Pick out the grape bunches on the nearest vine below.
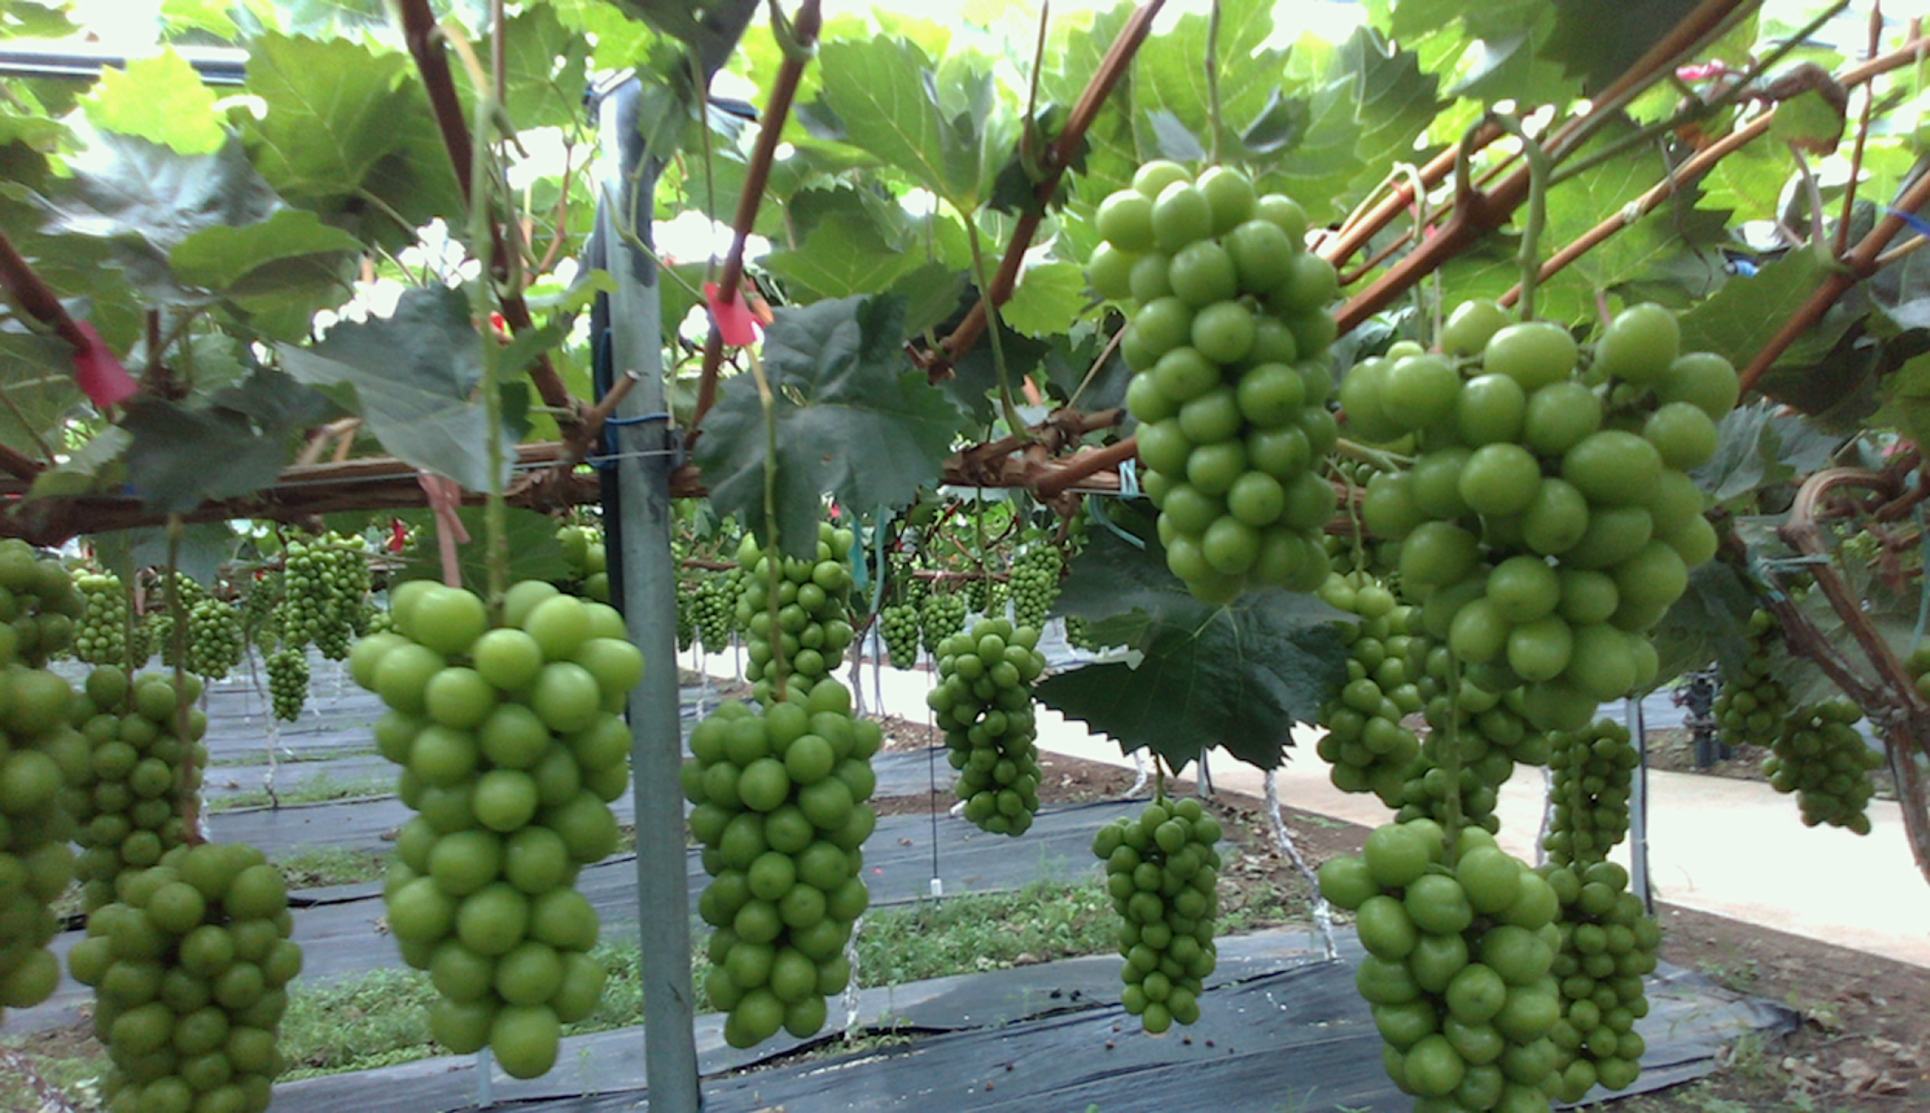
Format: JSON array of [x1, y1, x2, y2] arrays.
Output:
[[1090, 161, 1338, 603], [73, 842, 303, 1110], [1322, 818, 1563, 1111], [367, 580, 645, 1077], [682, 679, 881, 1048], [1339, 300, 1740, 733]]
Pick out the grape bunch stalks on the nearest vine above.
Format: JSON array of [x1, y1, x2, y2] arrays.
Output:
[[1205, 2, 1226, 170], [162, 510, 199, 849], [742, 345, 786, 702], [1457, 111, 1550, 322], [470, 128, 507, 608], [1444, 651, 1463, 875]]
